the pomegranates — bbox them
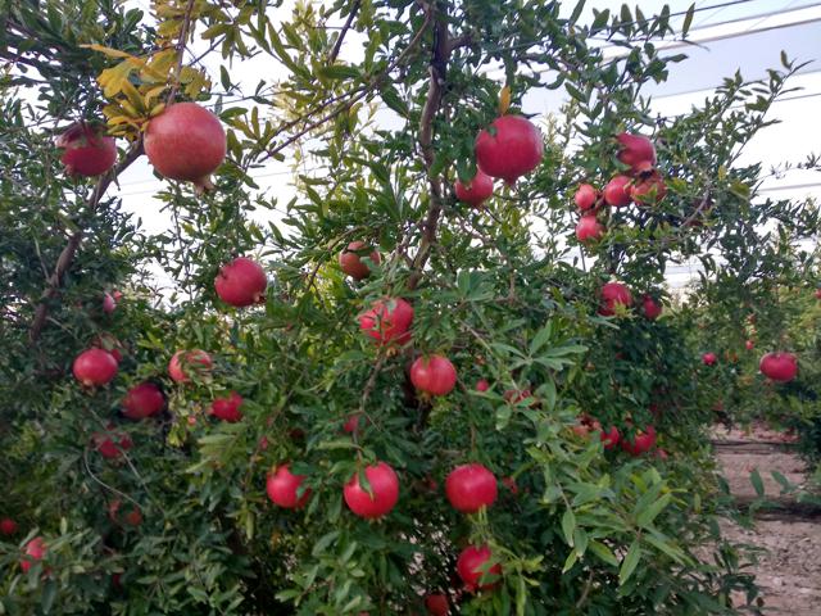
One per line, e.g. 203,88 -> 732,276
54,123 -> 118,176
104,289 -> 119,314
21,535 -> 46,571
575,182 -> 600,210
97,432 -> 133,458
263,463 -> 310,508
360,298 -> 416,345
339,240 -> 381,282
575,413 -> 620,450
213,257 -> 269,308
446,463 -> 498,515
630,172 -> 666,203
759,349 -> 800,382
167,348 -> 212,381
604,173 -> 632,208
204,390 -> 244,422
119,381 -> 167,418
425,590 -> 452,616
576,214 -> 607,241
599,284 -> 635,317
455,544 -> 503,594
641,294 -> 663,320
112,501 -> 142,525
616,130 -> 656,180
0,516 -> 19,534
618,426 -> 658,456
142,100 -> 227,200
454,163 -> 493,210
74,348 -> 118,388
475,114 -> 544,189
408,353 -> 457,399
344,459 -> 398,521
